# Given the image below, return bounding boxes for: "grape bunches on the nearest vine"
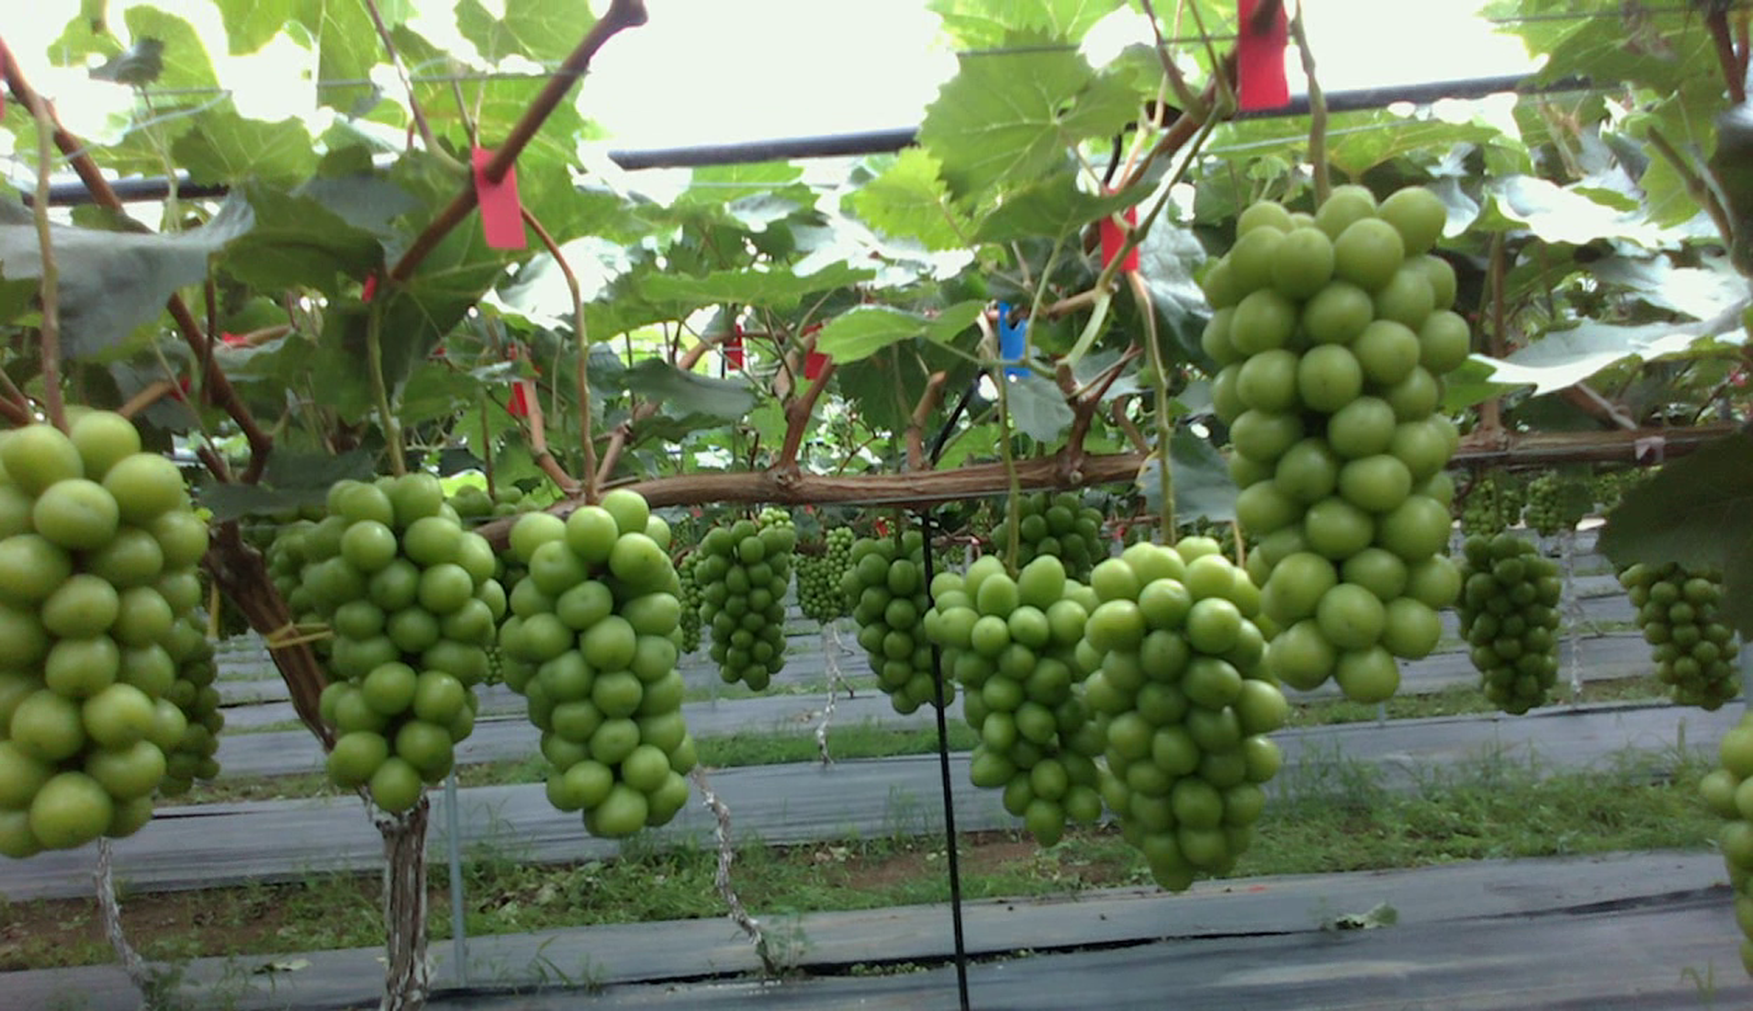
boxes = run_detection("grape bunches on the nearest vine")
[1,406,212,858]
[500,489,695,840]
[1076,538,1287,893]
[298,469,506,814]
[1204,185,1471,705]
[926,553,1098,848]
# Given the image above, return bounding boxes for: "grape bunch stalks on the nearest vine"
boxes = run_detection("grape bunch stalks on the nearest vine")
[1289,18,1327,205]
[1127,272,1174,545]
[525,213,600,503]
[367,261,405,476]
[28,110,69,434]
[993,371,1021,576]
